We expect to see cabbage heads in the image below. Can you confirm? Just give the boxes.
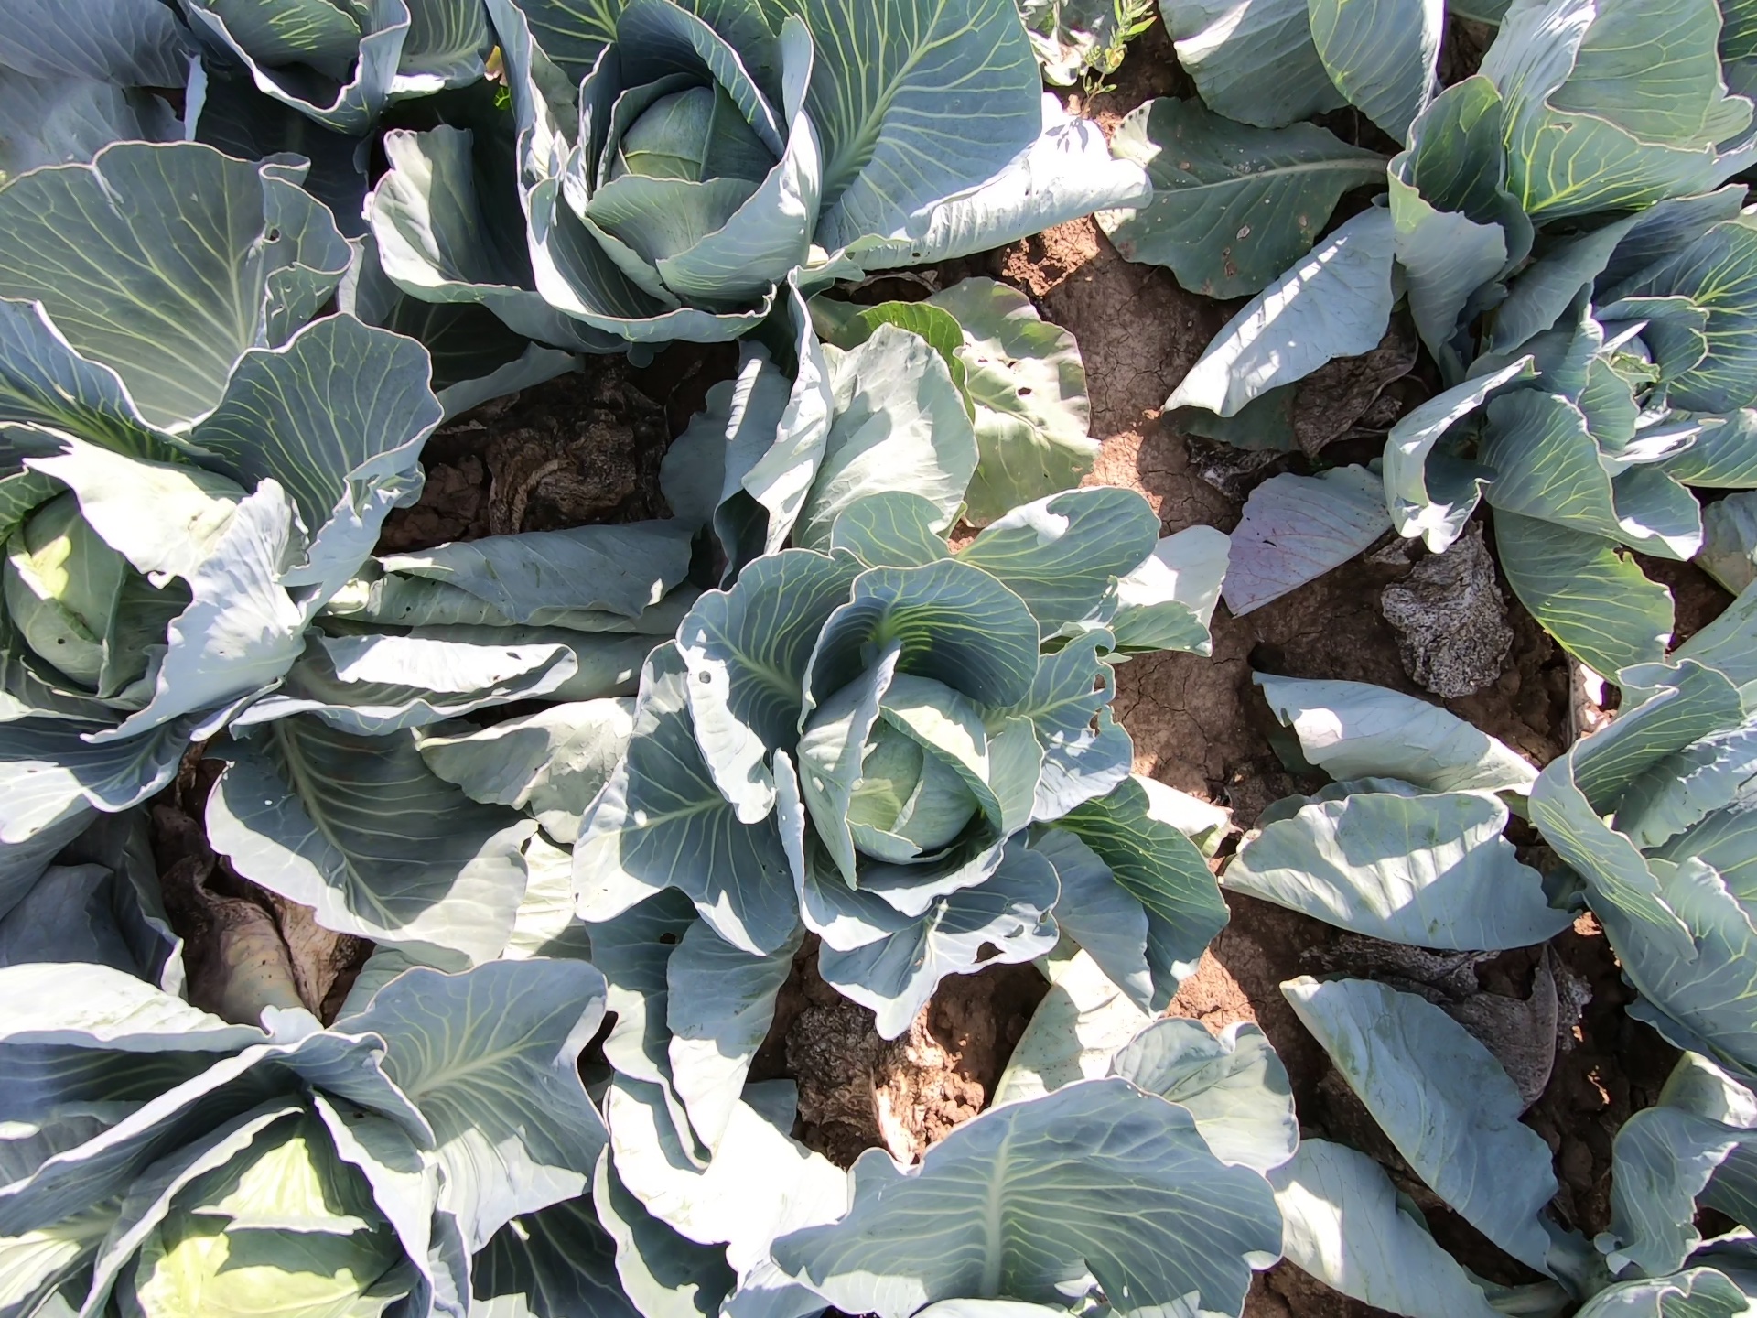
[111,1111,415,1315]
[809,675,985,852]
[608,92,771,250]
[1569,326,1651,417]
[3,475,201,684]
